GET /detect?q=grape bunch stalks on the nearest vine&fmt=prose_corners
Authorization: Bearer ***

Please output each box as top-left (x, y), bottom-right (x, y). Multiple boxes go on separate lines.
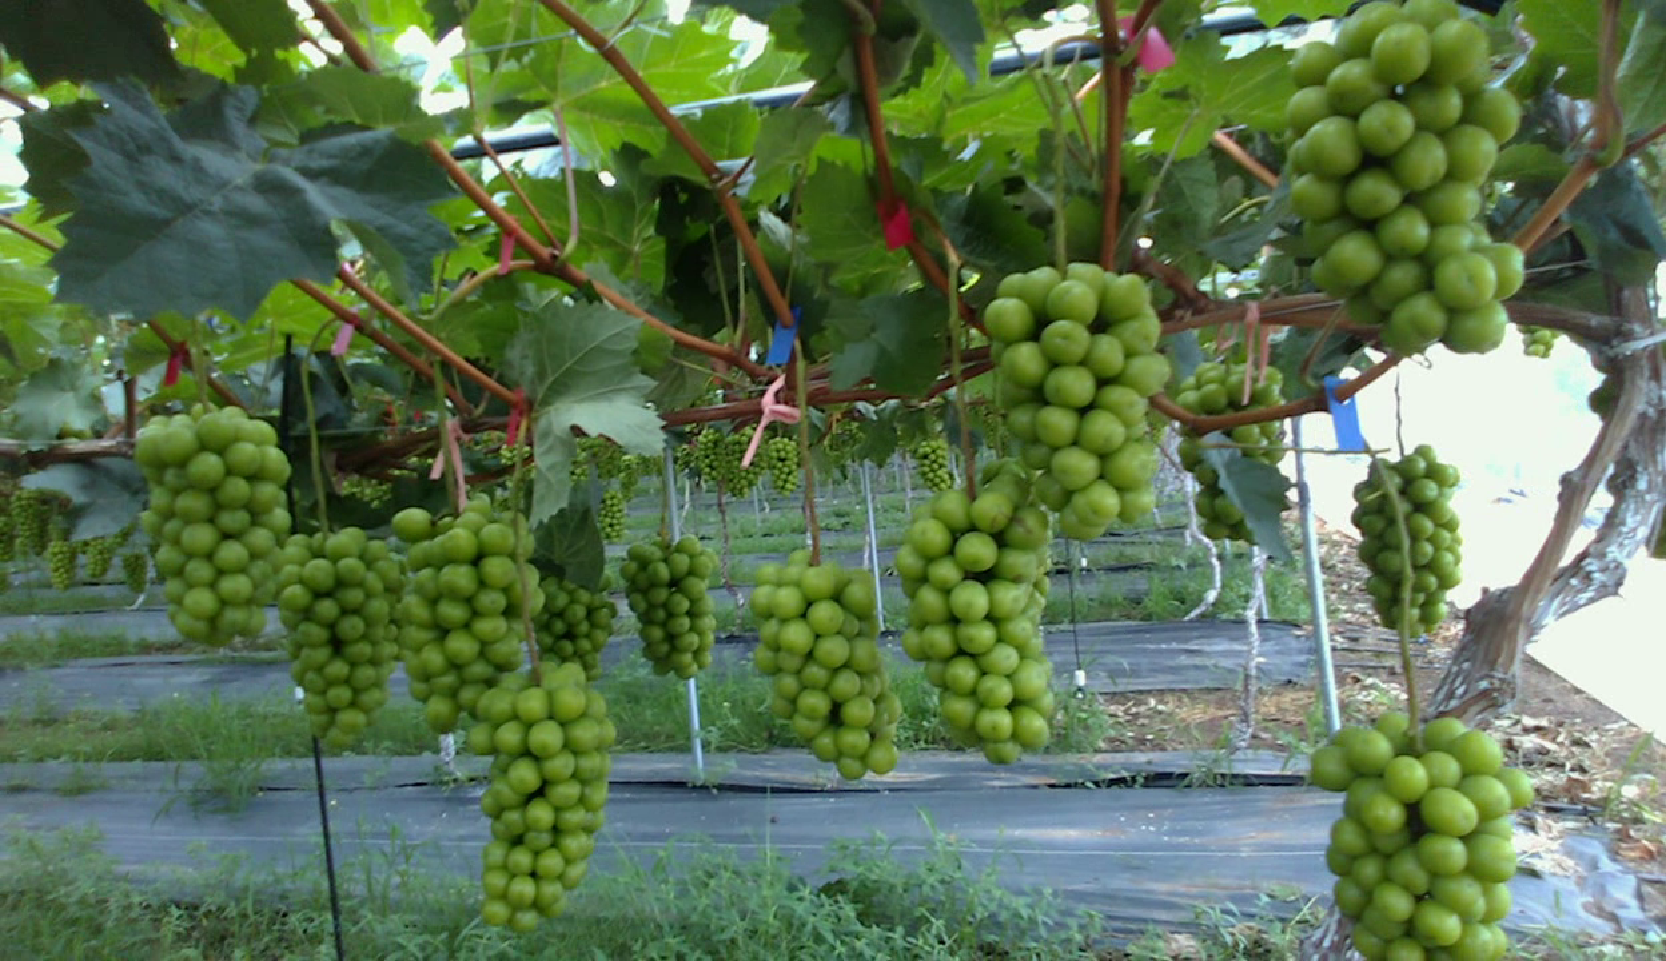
top-left (1363, 436), bottom-right (1420, 753)
top-left (1041, 31), bottom-right (1100, 275)
top-left (194, 316), bottom-right (210, 414)
top-left (434, 354), bottom-right (461, 518)
top-left (300, 315), bottom-right (338, 539)
top-left (509, 415), bottom-right (539, 685)
top-left (910, 204), bottom-right (977, 499)
top-left (794, 336), bottom-right (821, 565)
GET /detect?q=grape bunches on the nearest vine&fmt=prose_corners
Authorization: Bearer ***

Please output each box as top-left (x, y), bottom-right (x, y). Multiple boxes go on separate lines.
top-left (1312, 713), bottom-right (1533, 960)
top-left (466, 663), bottom-right (617, 934)
top-left (985, 263), bottom-right (1168, 542)
top-left (1282, 0), bottom-right (1524, 356)
top-left (894, 468), bottom-right (1056, 766)
top-left (749, 549), bottom-right (904, 781)
top-left (394, 502), bottom-right (523, 737)
top-left (278, 529), bottom-right (400, 757)
top-left (136, 407), bottom-right (291, 647)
